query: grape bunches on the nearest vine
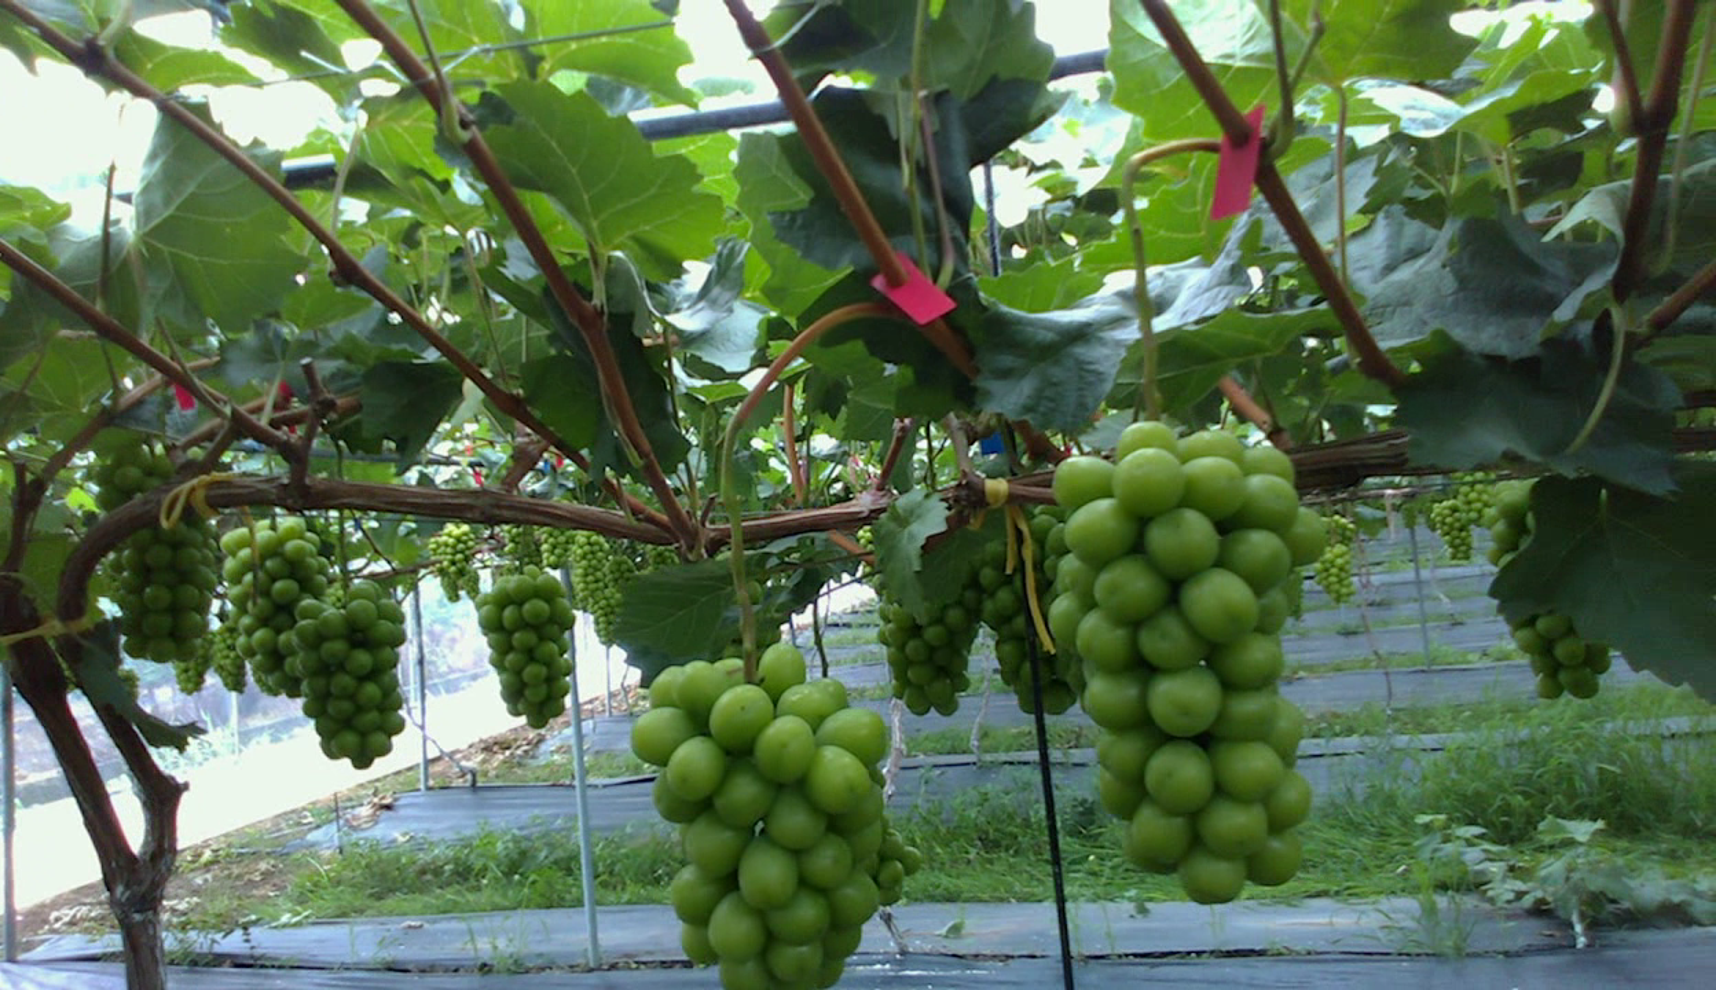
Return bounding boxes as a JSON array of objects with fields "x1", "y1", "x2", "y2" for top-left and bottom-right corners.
[
  {"x1": 1048, "y1": 421, "x2": 1325, "y2": 903},
  {"x1": 631, "y1": 645, "x2": 890, "y2": 989}
]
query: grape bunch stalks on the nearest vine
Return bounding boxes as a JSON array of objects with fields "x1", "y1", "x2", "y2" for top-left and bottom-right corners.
[
  {"x1": 1121, "y1": 140, "x2": 1221, "y2": 419},
  {"x1": 718, "y1": 302, "x2": 898, "y2": 681}
]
